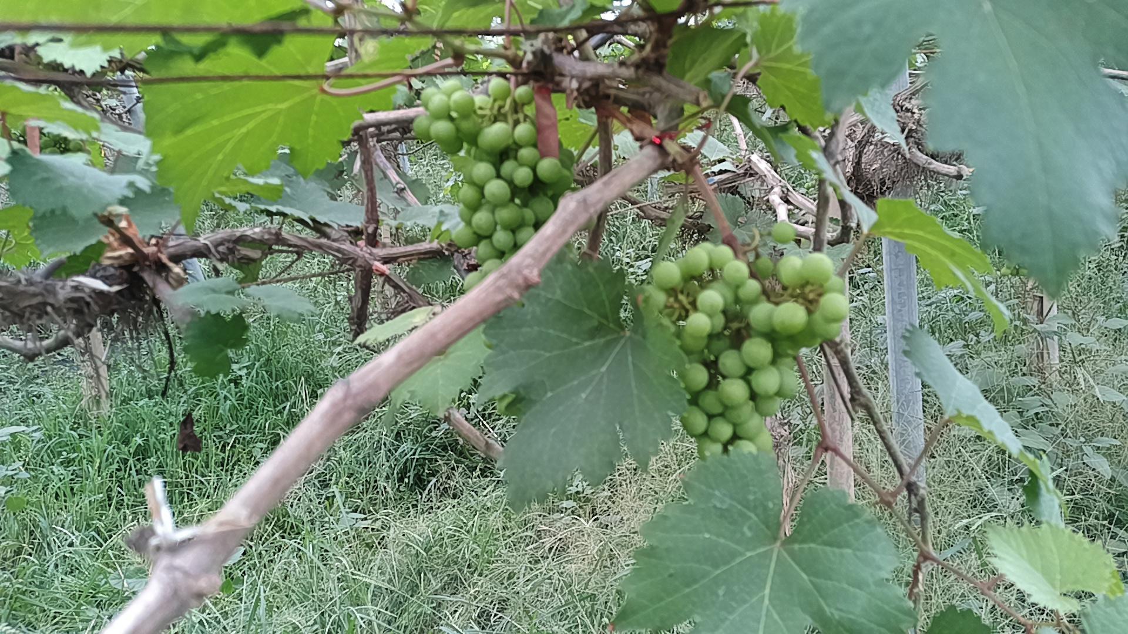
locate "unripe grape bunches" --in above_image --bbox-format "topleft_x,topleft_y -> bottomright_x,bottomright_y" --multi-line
412,76 -> 575,291
642,220 -> 847,455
